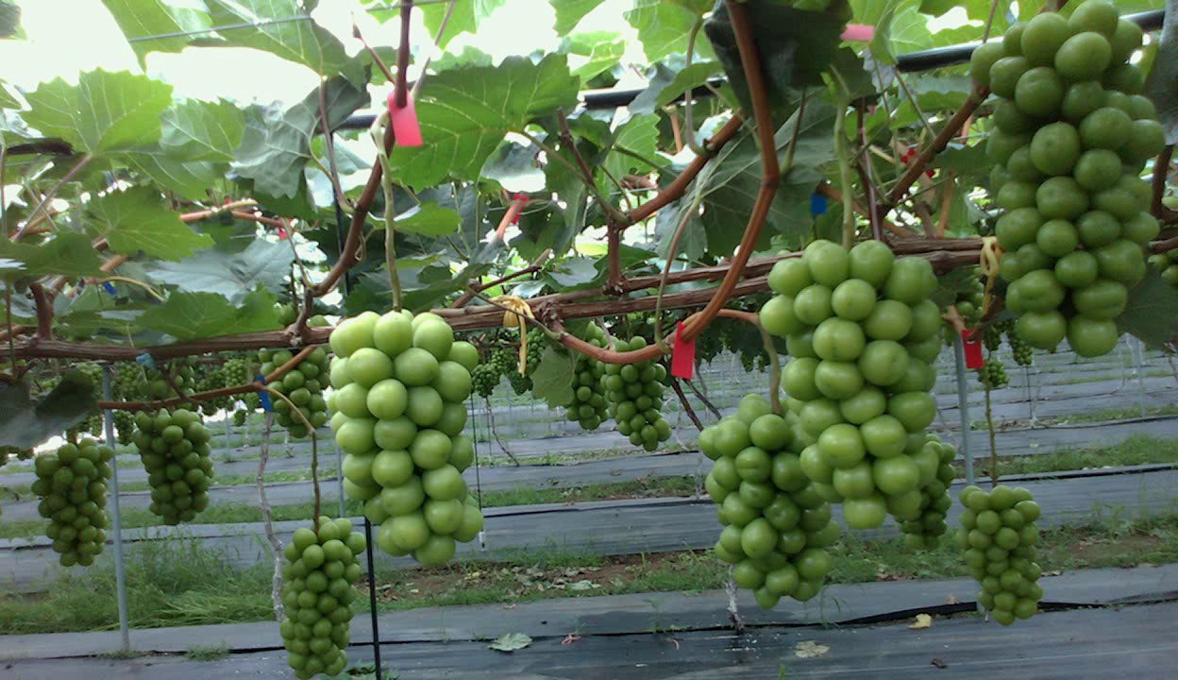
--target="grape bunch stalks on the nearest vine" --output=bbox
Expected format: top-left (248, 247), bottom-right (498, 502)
top-left (719, 309), bottom-right (783, 413)
top-left (829, 65), bottom-right (853, 245)
top-left (1049, 1), bottom-right (1058, 9)
top-left (370, 112), bottom-right (400, 310)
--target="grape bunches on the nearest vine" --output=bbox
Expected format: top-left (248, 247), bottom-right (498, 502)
top-left (697, 393), bottom-right (843, 609)
top-left (968, 0), bottom-right (1166, 359)
top-left (761, 238), bottom-right (943, 530)
top-left (328, 310), bottom-right (483, 571)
